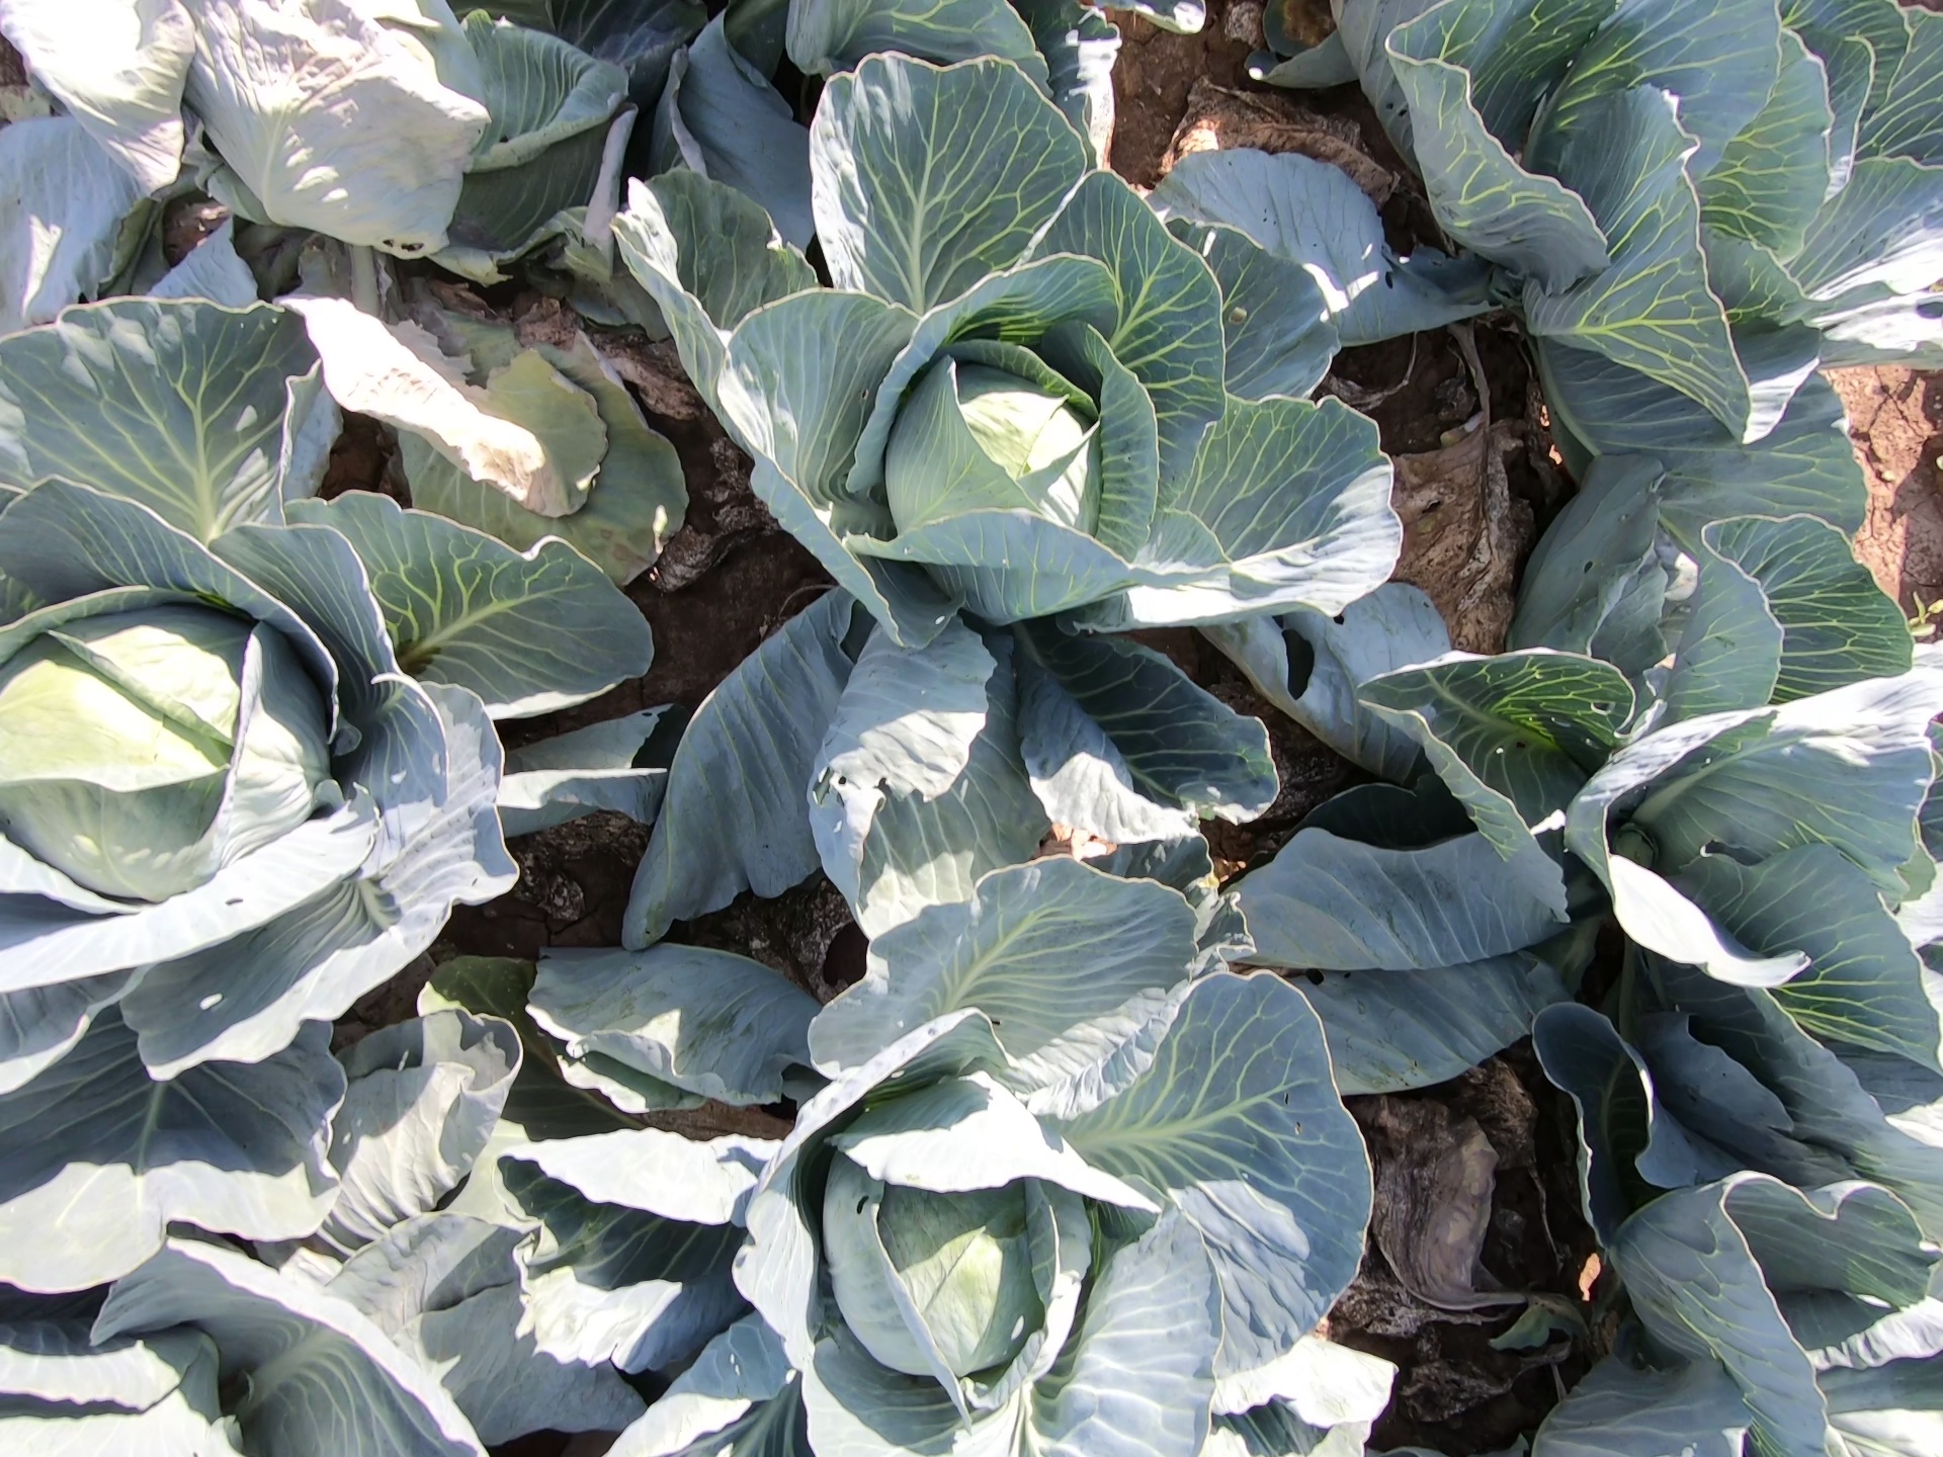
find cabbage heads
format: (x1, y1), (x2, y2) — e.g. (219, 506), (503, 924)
(4, 598), (320, 907)
(829, 1092), (1088, 1379)
(898, 360), (1101, 583)
(177, 4), (486, 240)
